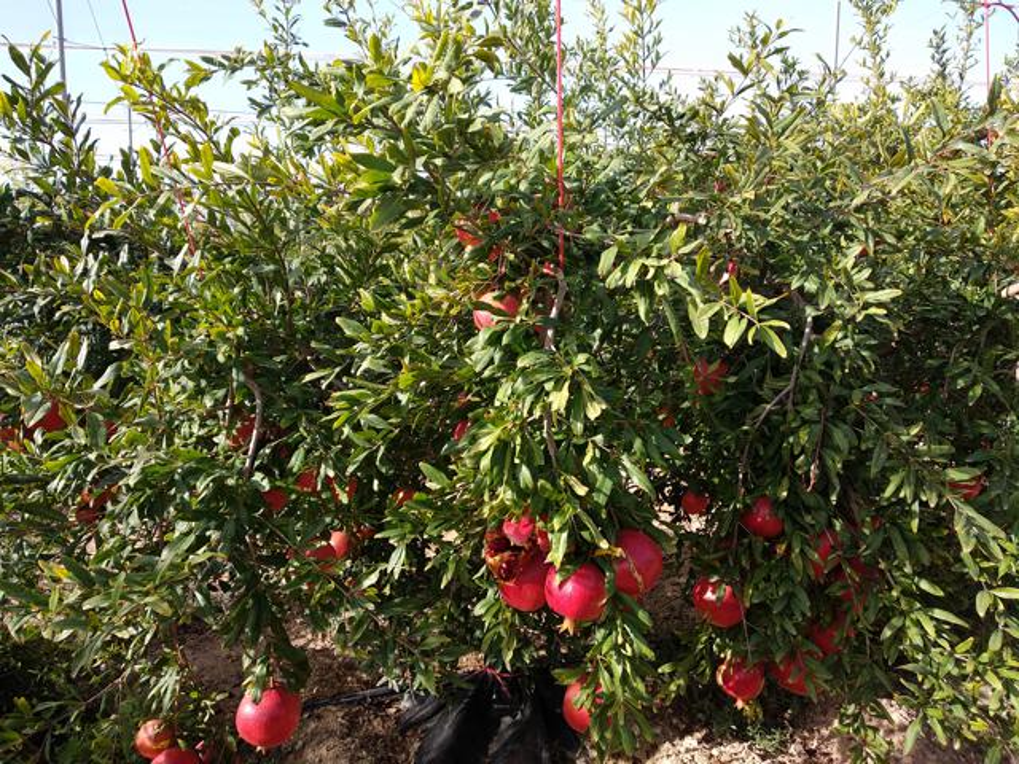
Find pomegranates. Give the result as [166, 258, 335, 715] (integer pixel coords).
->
[24, 404, 67, 441]
[615, 528, 666, 595]
[234, 688, 303, 754]
[497, 549, 552, 613]
[693, 358, 728, 395]
[452, 419, 470, 439]
[229, 414, 256, 450]
[545, 559, 605, 637]
[560, 673, 603, 734]
[951, 481, 984, 501]
[742, 495, 783, 540]
[328, 530, 352, 560]
[135, 718, 175, 759]
[471, 290, 519, 333]
[693, 575, 745, 629]
[810, 610, 847, 654]
[482, 517, 552, 584]
[833, 559, 880, 600]
[193, 740, 215, 764]
[680, 490, 709, 514]
[150, 745, 201, 764]
[393, 487, 416, 508]
[261, 489, 287, 513]
[455, 228, 502, 263]
[303, 543, 336, 571]
[771, 657, 807, 696]
[715, 659, 766, 710]
[812, 528, 842, 578]
[296, 471, 358, 506]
